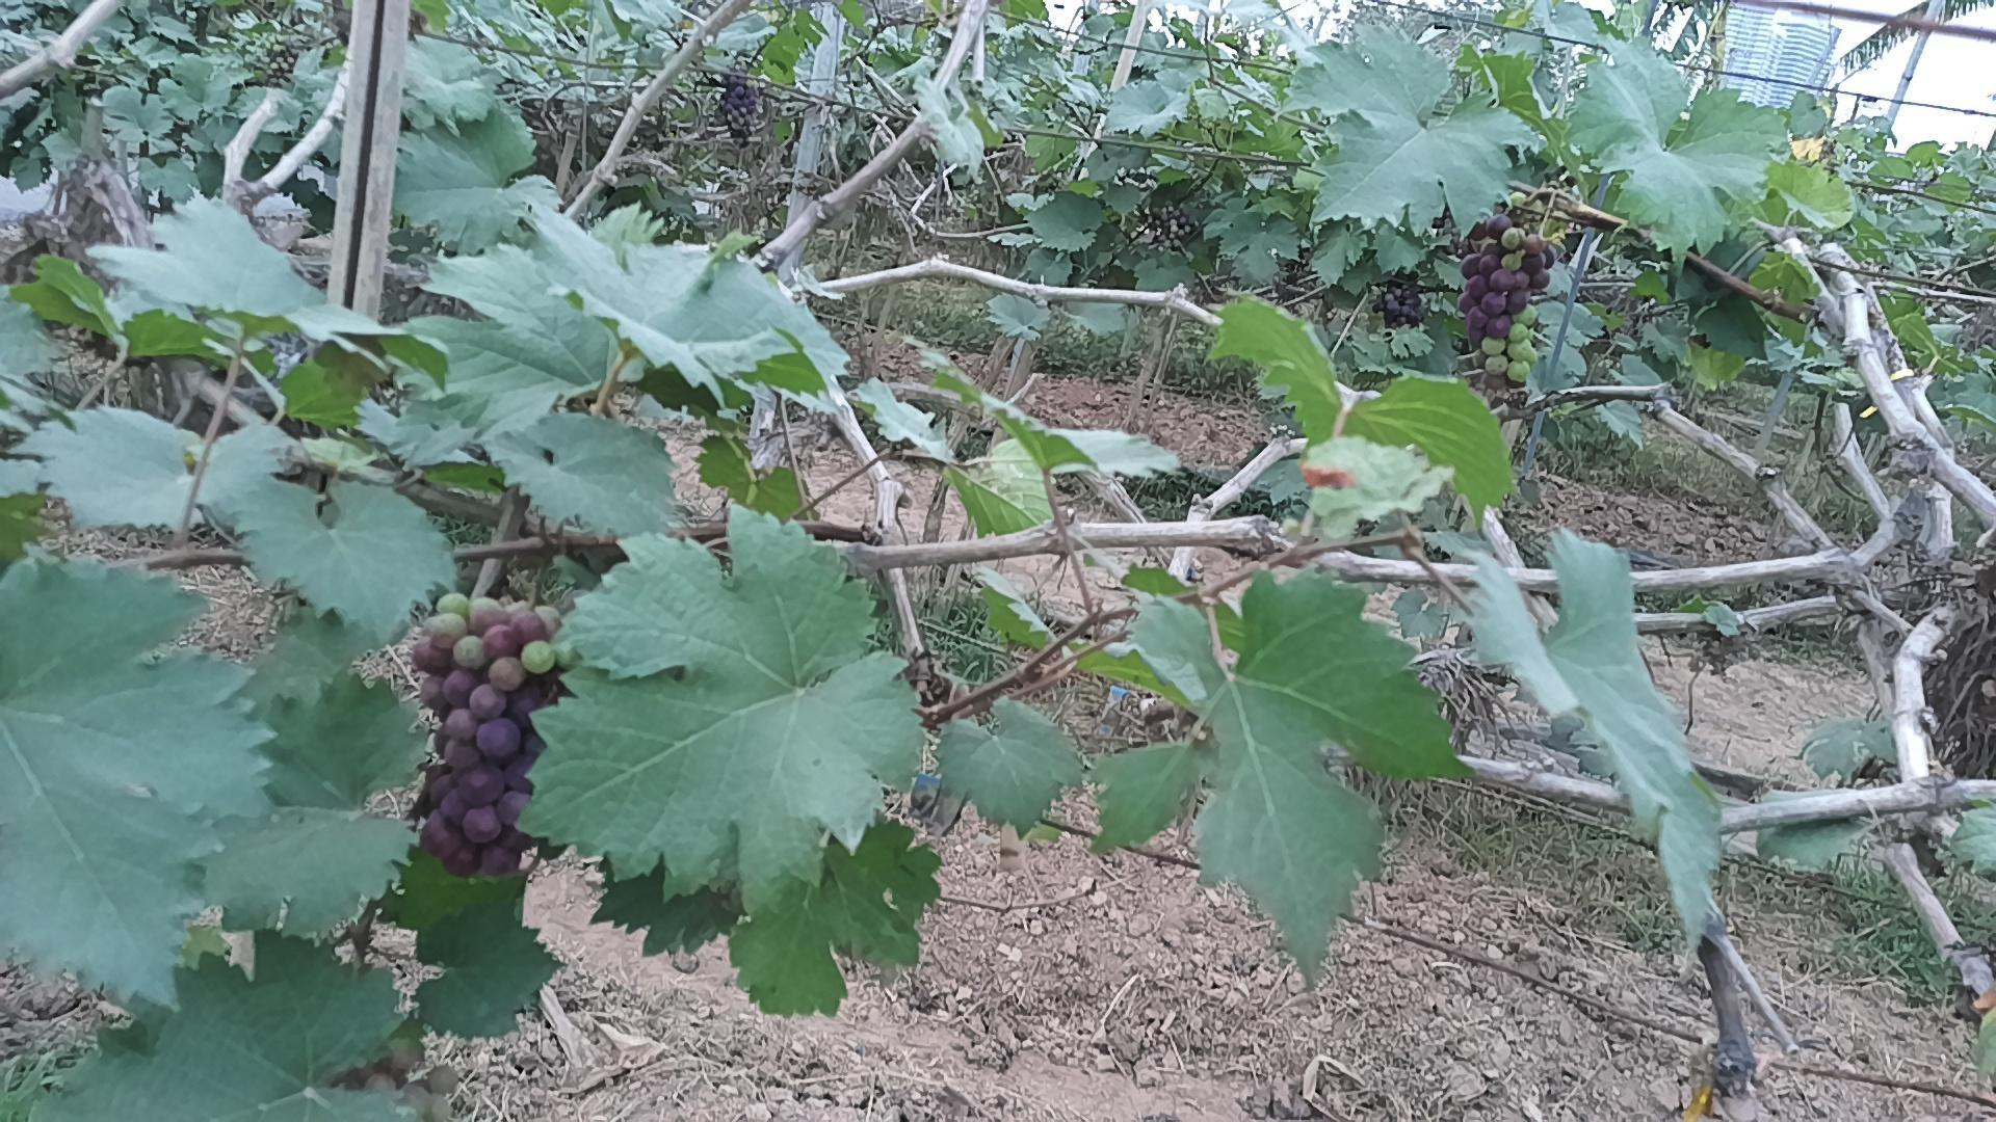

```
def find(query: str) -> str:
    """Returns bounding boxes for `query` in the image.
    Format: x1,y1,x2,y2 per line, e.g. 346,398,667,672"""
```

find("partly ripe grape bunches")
718,74,760,145
1368,271,1425,329
412,593,567,877
1457,192,1571,390
1139,203,1204,255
